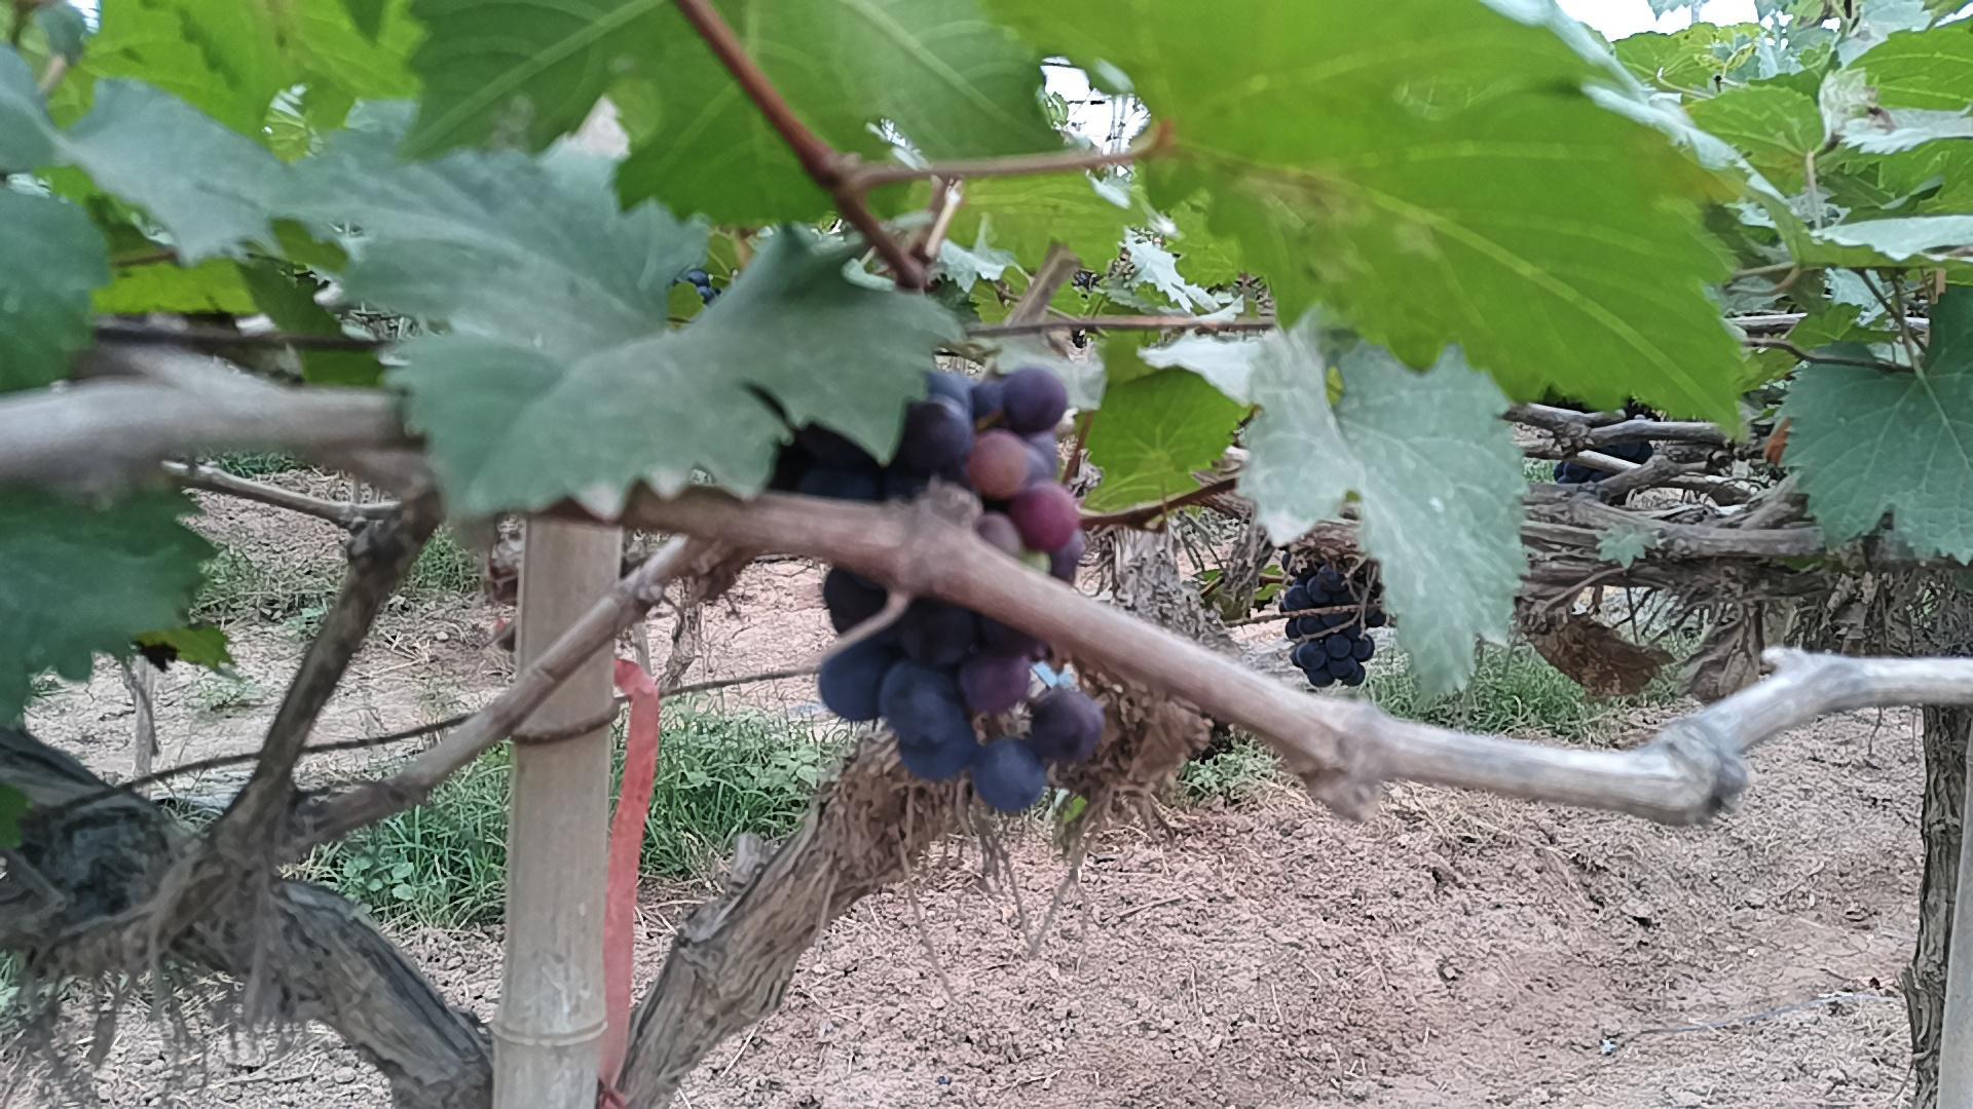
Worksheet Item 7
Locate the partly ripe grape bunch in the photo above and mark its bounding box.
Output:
[774,370,1105,816]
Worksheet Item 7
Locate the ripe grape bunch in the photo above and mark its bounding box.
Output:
[1279,565,1386,687]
